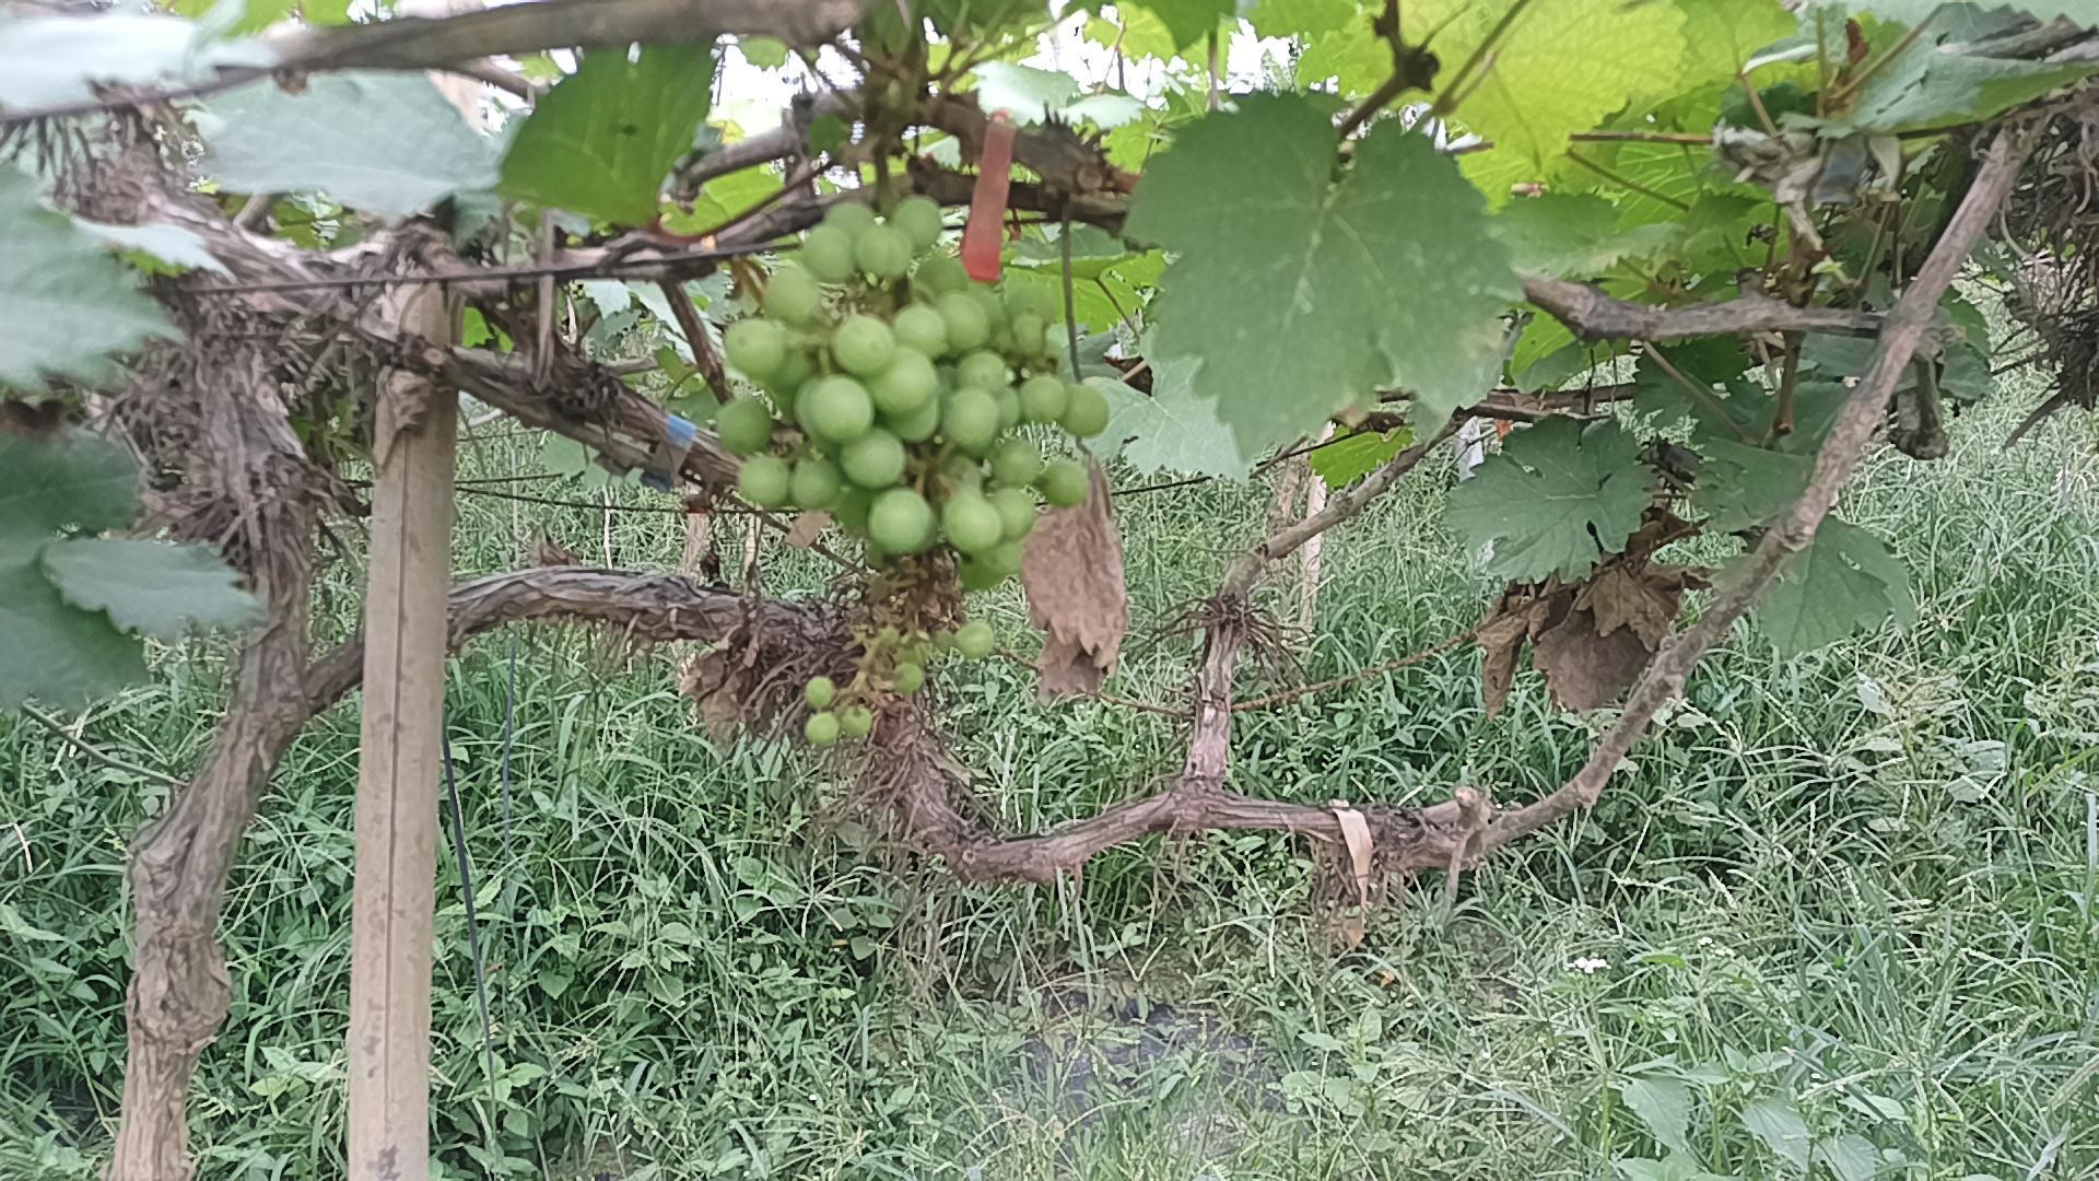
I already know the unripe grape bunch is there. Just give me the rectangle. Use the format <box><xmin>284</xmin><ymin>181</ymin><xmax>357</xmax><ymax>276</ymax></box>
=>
<box><xmin>718</xmin><ymin>196</ymin><xmax>1111</xmax><ymax>745</ymax></box>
